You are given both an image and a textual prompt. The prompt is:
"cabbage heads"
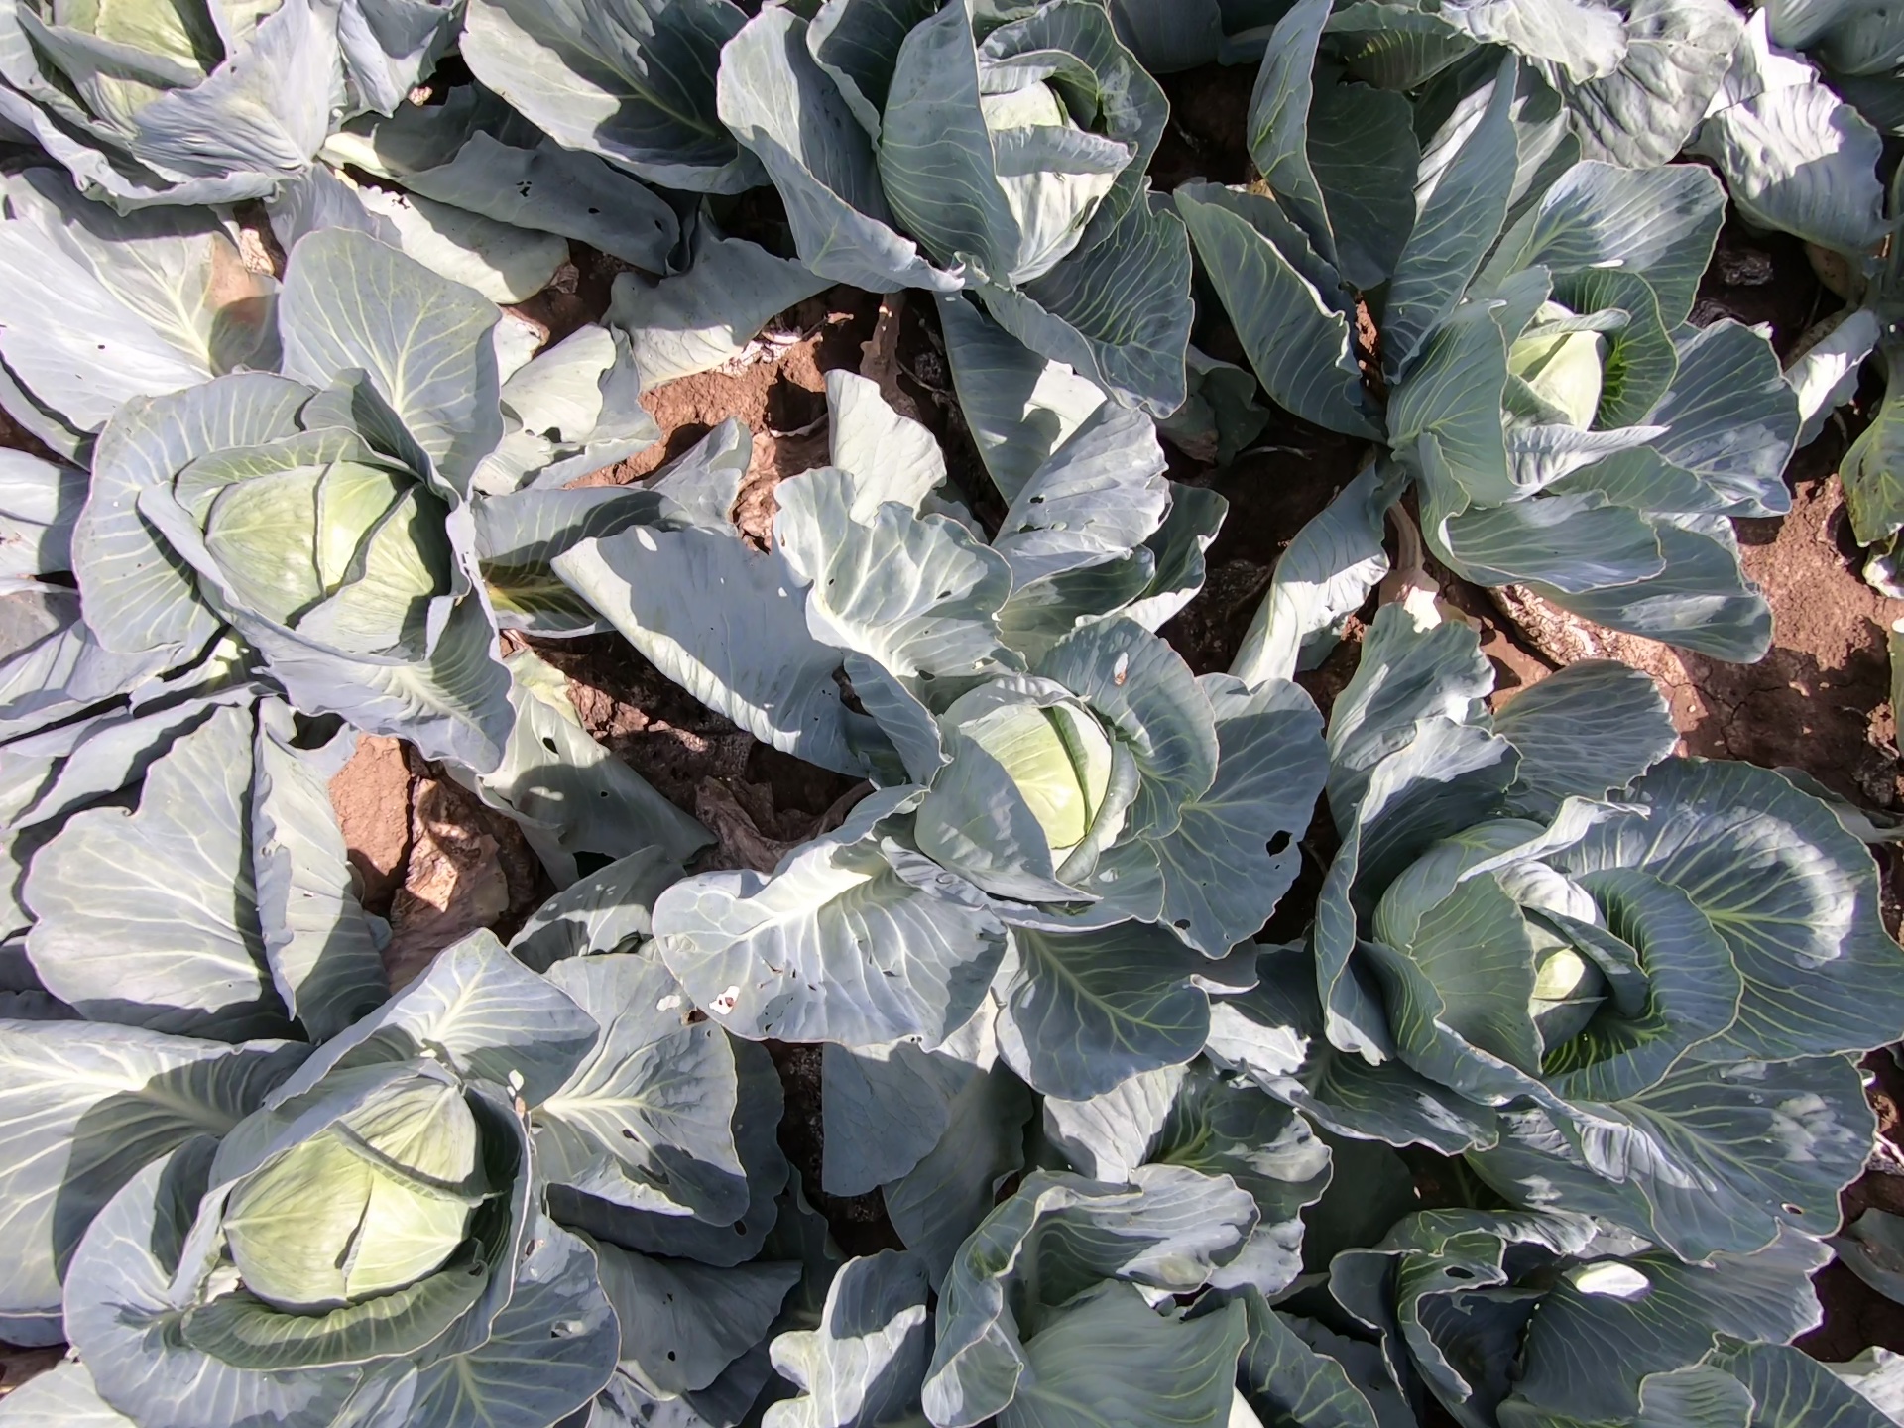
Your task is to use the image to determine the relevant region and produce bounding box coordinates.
[224,1070,484,1325]
[892,53,1088,274]
[1408,858,1612,1051]
[1413,295,1603,497]
[198,439,462,656]
[933,678,1131,885]
[50,2,333,174]
[1012,1314,1266,1425]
